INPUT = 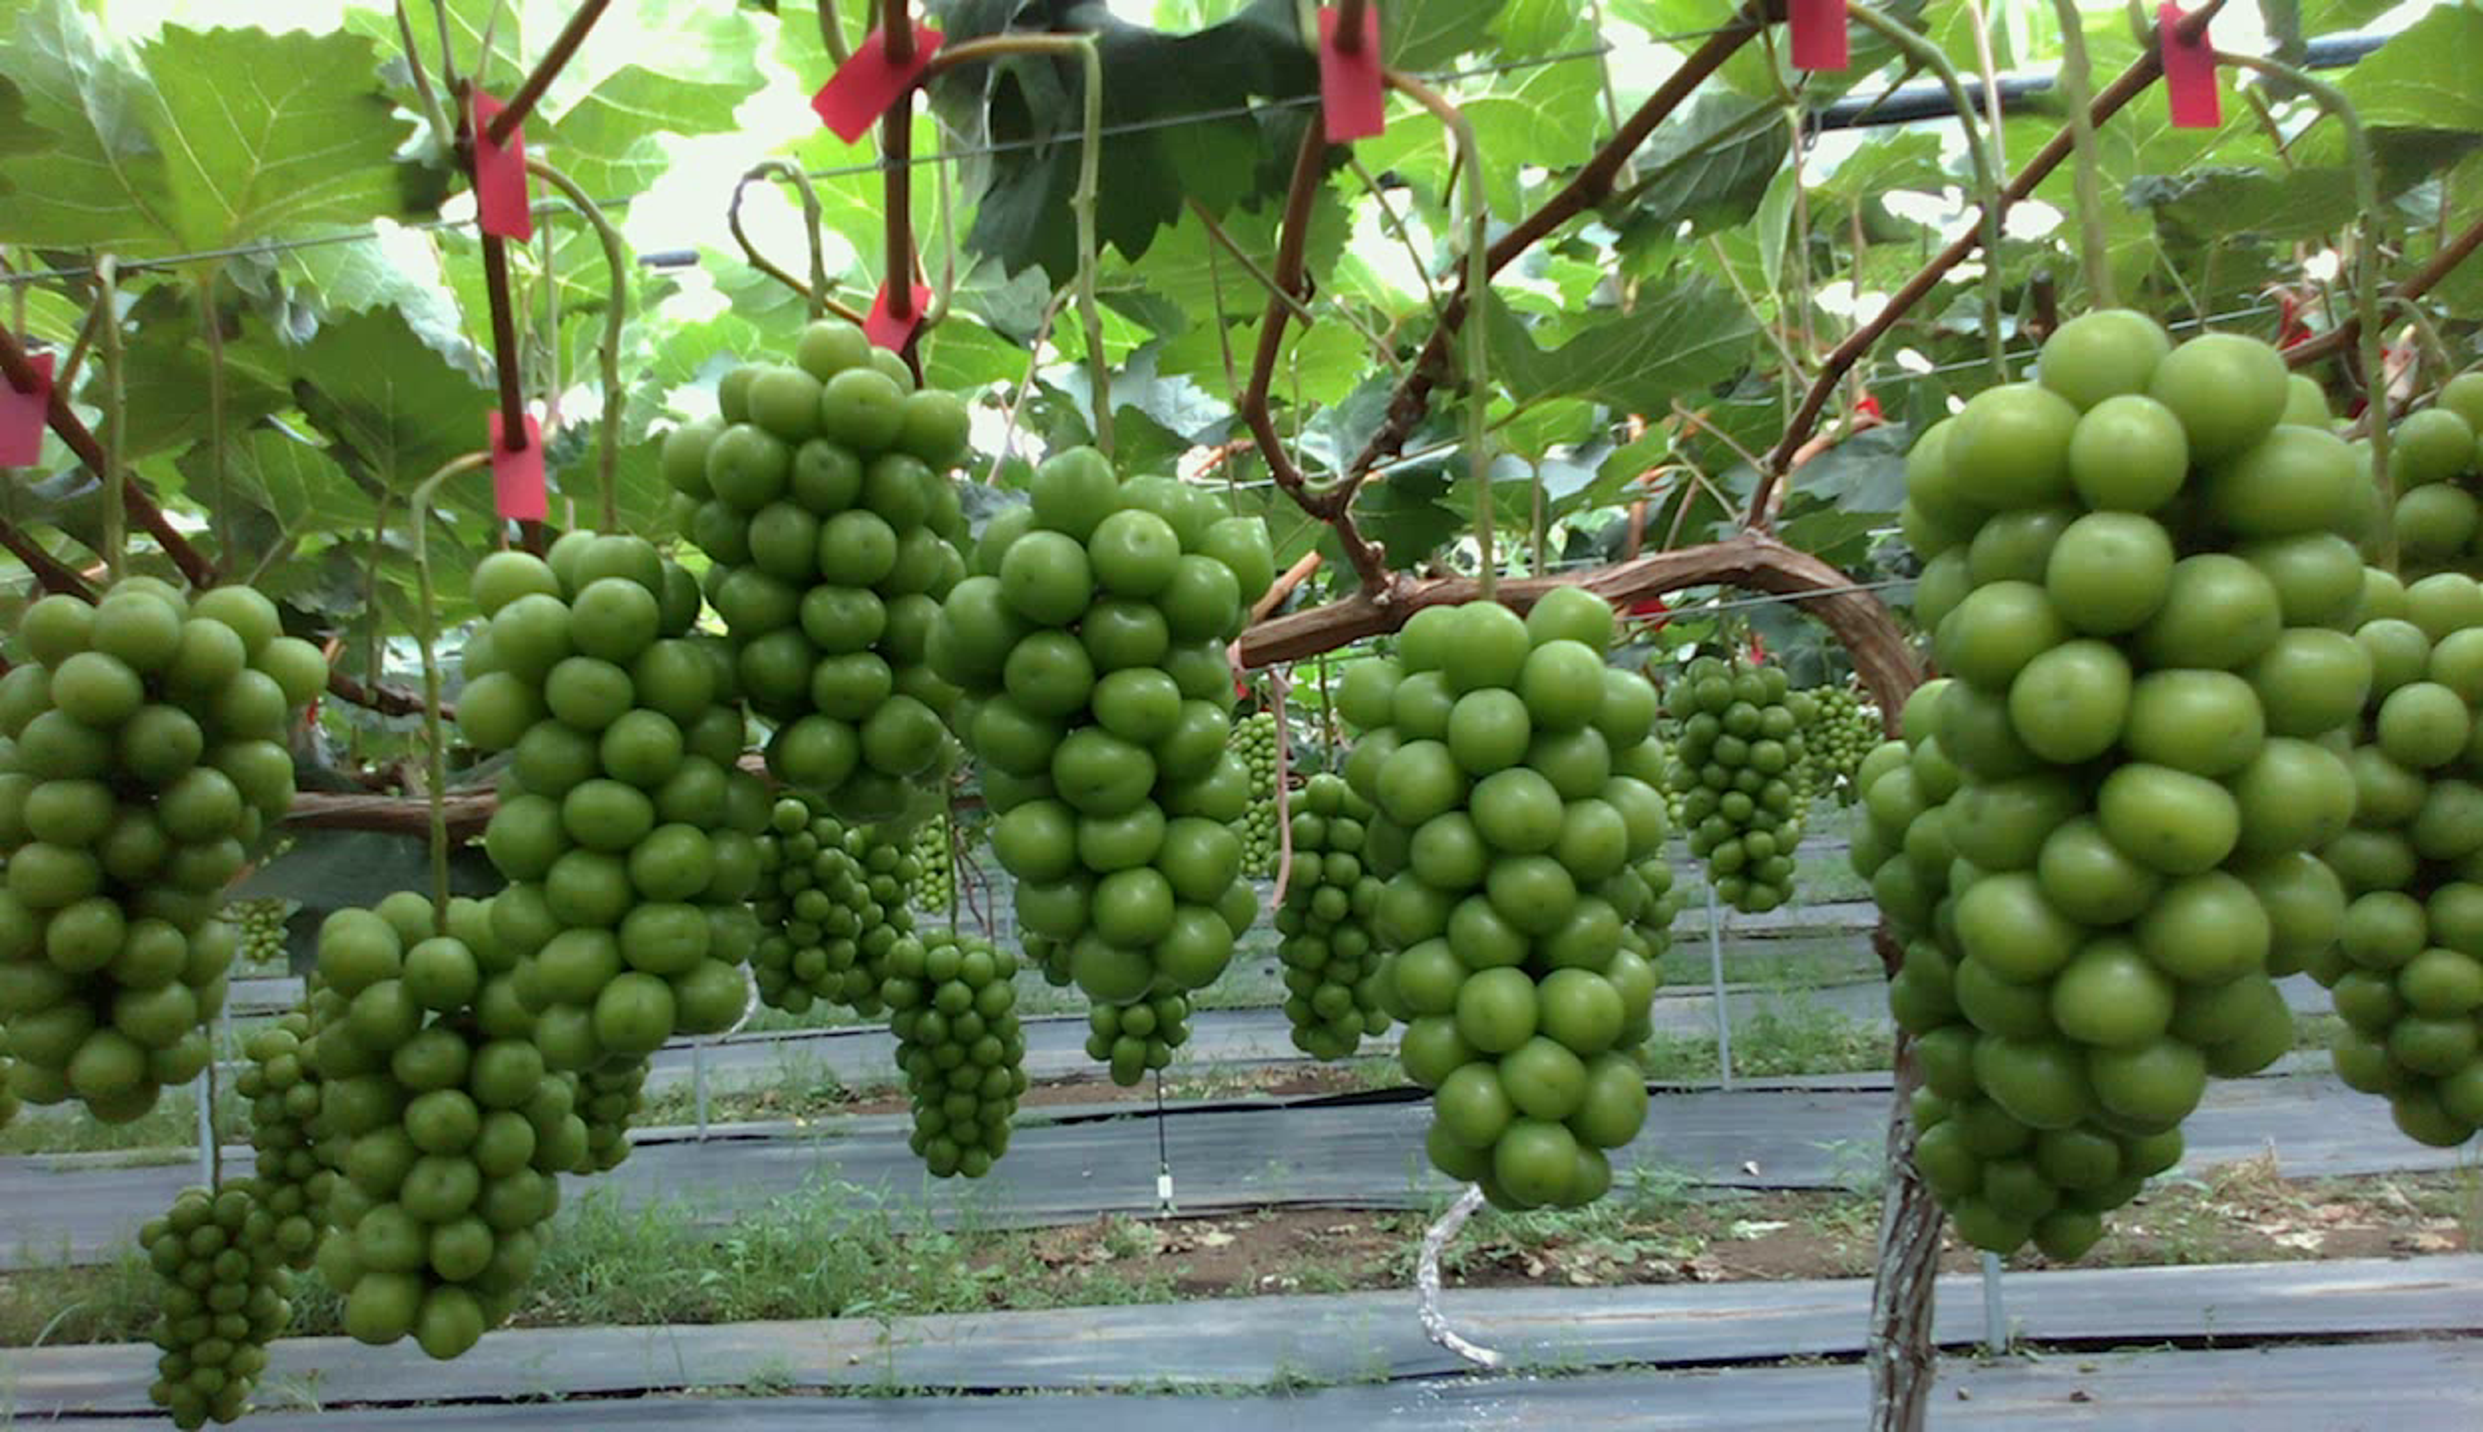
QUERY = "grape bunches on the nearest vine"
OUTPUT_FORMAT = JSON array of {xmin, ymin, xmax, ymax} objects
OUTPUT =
[
  {"xmin": 458, "ymin": 529, "xmax": 774, "ymax": 1074},
  {"xmin": 2298, "ymin": 372, "xmax": 2481, "ymax": 1146},
  {"xmin": 1333, "ymin": 585, "xmax": 1667, "ymax": 1213},
  {"xmin": 2, "ymin": 575, "xmax": 330, "ymax": 1128},
  {"xmin": 310, "ymin": 891, "xmax": 591, "ymax": 1360},
  {"xmin": 1846, "ymin": 310, "xmax": 2372, "ymax": 1263},
  {"xmin": 659, "ymin": 320, "xmax": 971, "ymax": 825},
  {"xmin": 925, "ymin": 446, "xmax": 1275, "ymax": 1004}
]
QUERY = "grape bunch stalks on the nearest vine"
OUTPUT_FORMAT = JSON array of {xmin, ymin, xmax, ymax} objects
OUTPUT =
[
  {"xmin": 2216, "ymin": 50, "xmax": 2399, "ymax": 577},
  {"xmin": 90, "ymin": 253, "xmax": 127, "ymax": 587},
  {"xmin": 746, "ymin": 157, "xmax": 830, "ymax": 328},
  {"xmin": 925, "ymin": 34, "xmax": 1116, "ymax": 465},
  {"xmin": 1381, "ymin": 68, "xmax": 1494, "ymax": 599},
  {"xmin": 2049, "ymin": 4, "xmax": 2119, "ymax": 310},
  {"xmin": 523, "ymin": 155, "xmax": 629, "ymax": 537},
  {"xmin": 410, "ymin": 451, "xmax": 491, "ymax": 937}
]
